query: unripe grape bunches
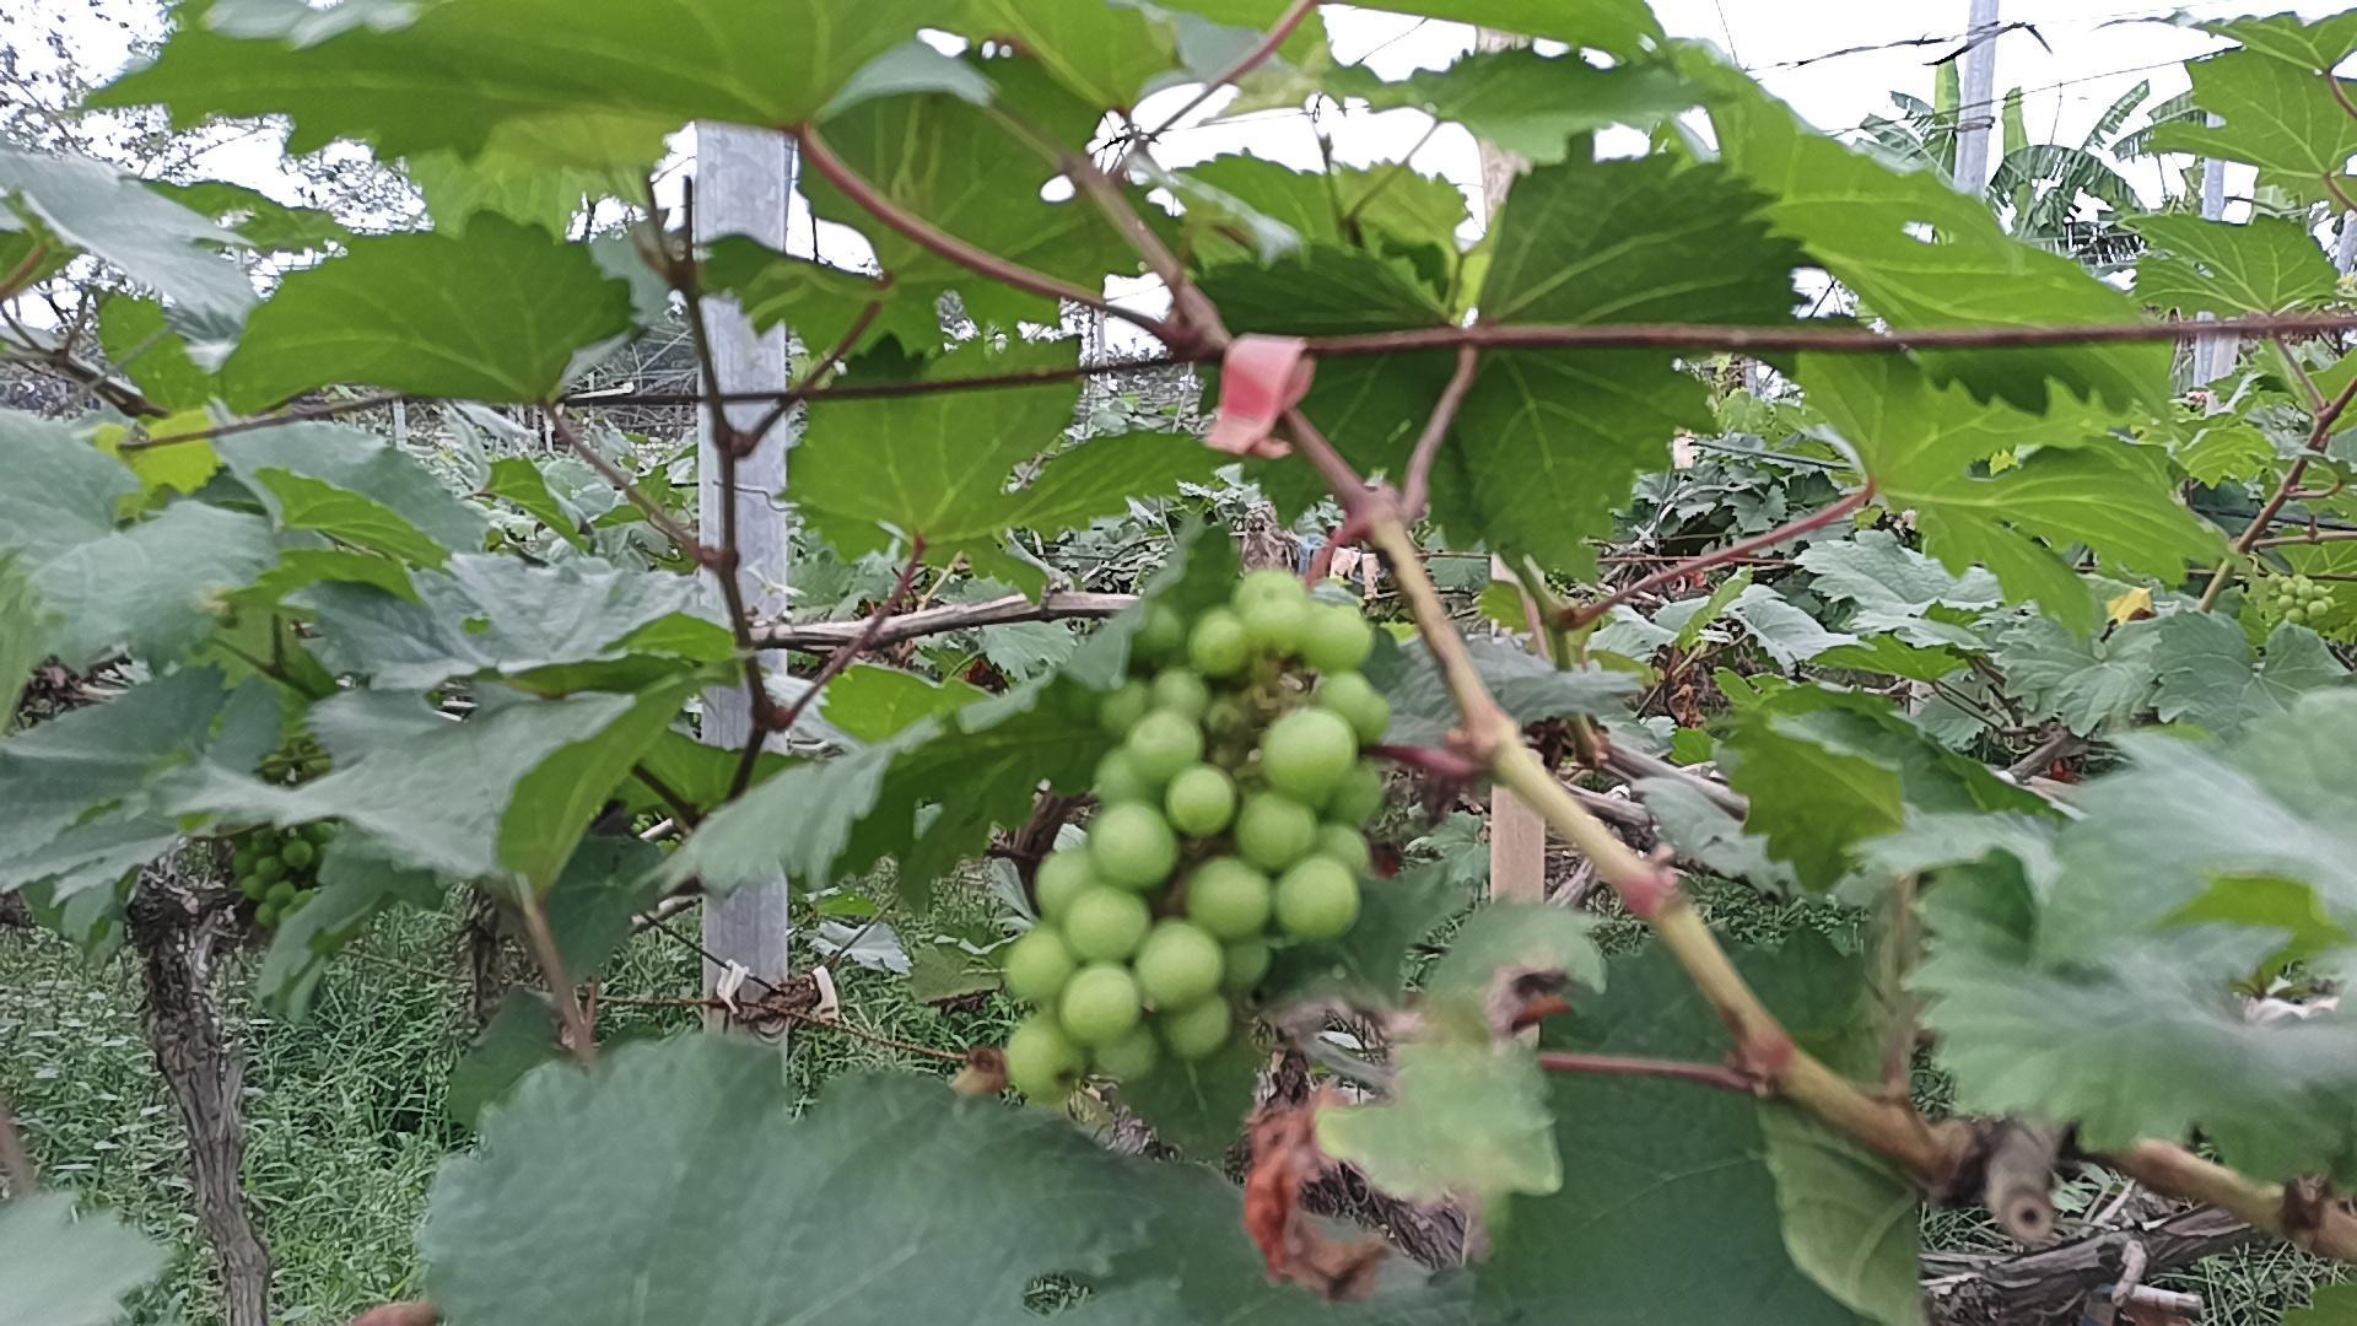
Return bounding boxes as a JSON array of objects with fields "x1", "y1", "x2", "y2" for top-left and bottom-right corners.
[
  {"x1": 954, "y1": 570, "x2": 1392, "y2": 1104},
  {"x1": 226, "y1": 821, "x2": 334, "y2": 934}
]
